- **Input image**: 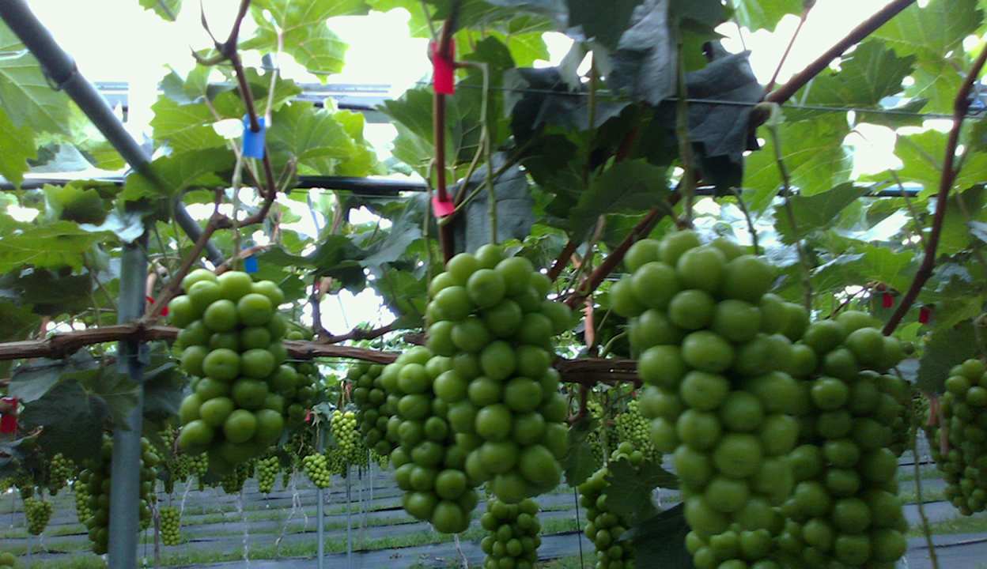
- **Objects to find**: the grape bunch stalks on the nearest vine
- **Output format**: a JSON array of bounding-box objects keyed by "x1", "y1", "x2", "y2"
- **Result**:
[
  {"x1": 674, "y1": 26, "x2": 695, "y2": 230},
  {"x1": 754, "y1": 100, "x2": 812, "y2": 322},
  {"x1": 231, "y1": 155, "x2": 244, "y2": 270},
  {"x1": 455, "y1": 60, "x2": 498, "y2": 243}
]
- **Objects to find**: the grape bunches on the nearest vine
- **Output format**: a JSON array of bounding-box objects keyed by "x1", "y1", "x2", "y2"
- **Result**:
[
  {"x1": 378, "y1": 345, "x2": 478, "y2": 533},
  {"x1": 424, "y1": 243, "x2": 571, "y2": 504},
  {"x1": 168, "y1": 269, "x2": 297, "y2": 476},
  {"x1": 608, "y1": 230, "x2": 816, "y2": 537},
  {"x1": 776, "y1": 310, "x2": 909, "y2": 568}
]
